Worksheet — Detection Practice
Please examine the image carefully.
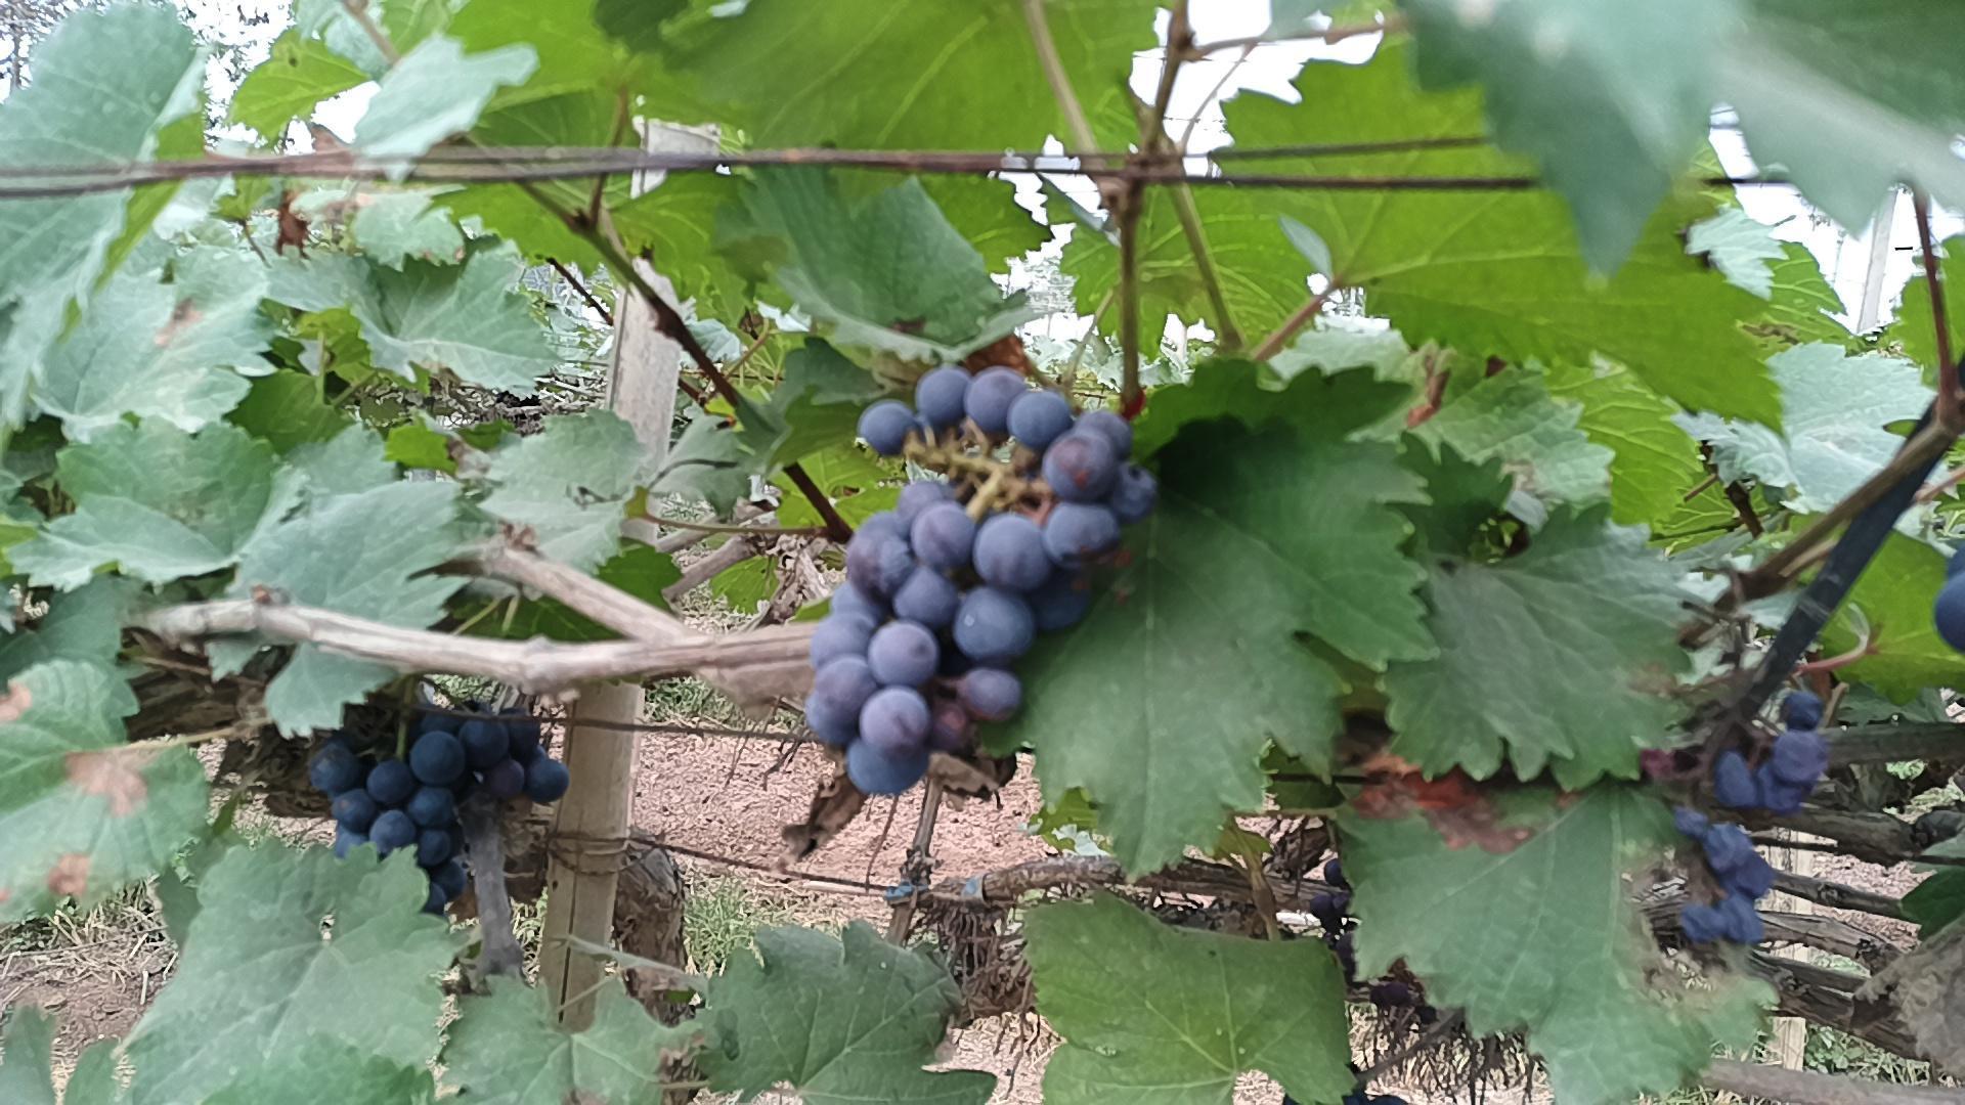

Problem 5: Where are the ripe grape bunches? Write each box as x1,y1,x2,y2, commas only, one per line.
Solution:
1713,692,1829,815
1676,807,1778,944
309,704,568,913
1934,544,1964,653
1305,857,1437,1028
805,366,1156,828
